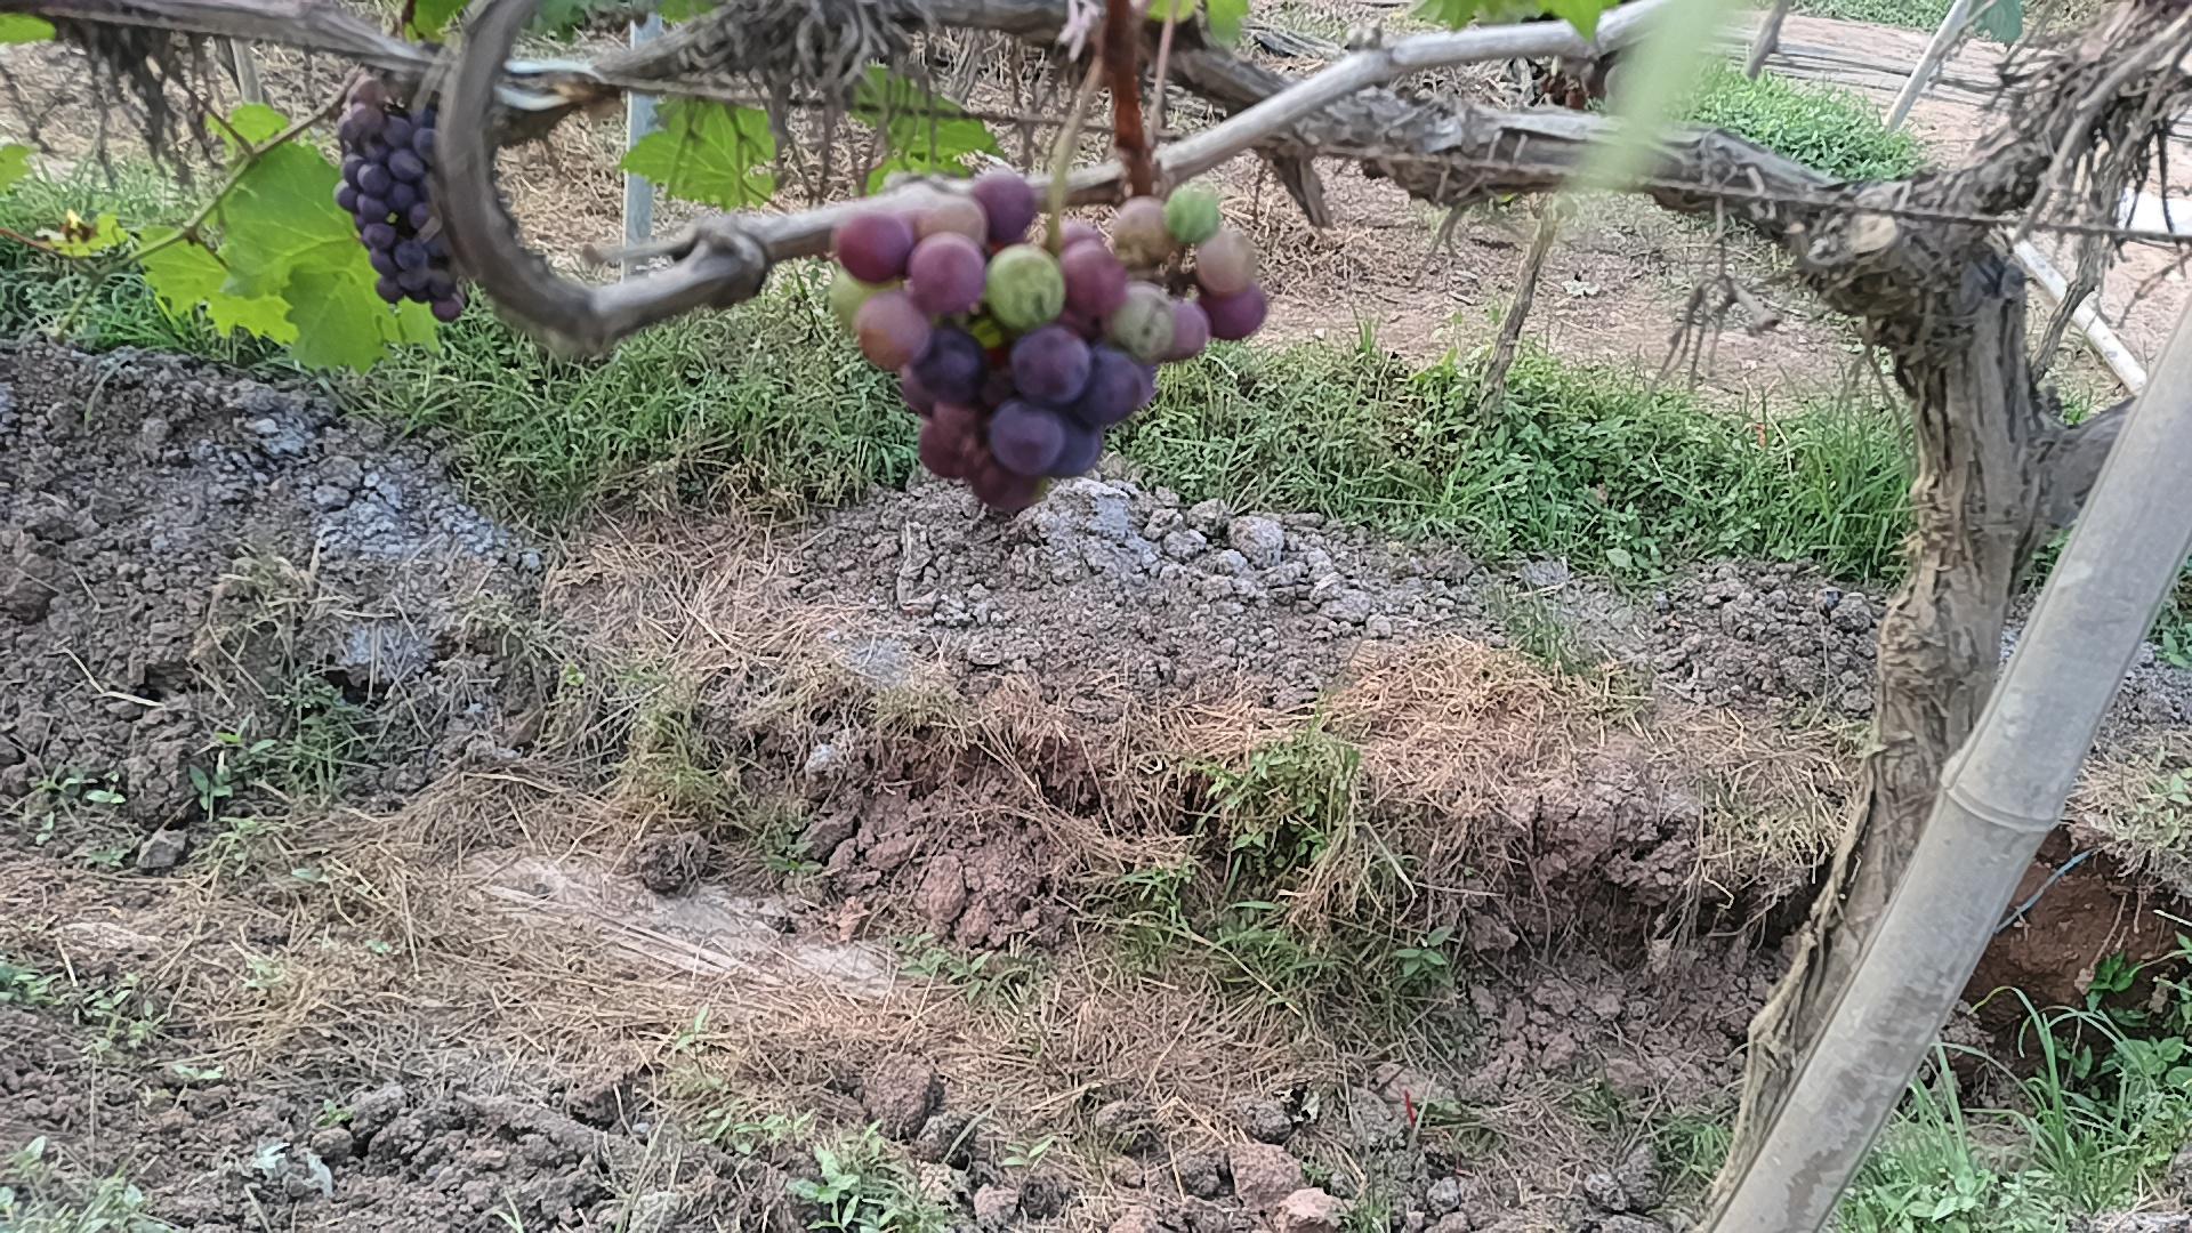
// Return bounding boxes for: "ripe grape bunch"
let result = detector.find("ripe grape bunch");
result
[336,78,466,321]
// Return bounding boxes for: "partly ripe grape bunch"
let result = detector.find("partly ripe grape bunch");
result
[832,170,1266,514]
